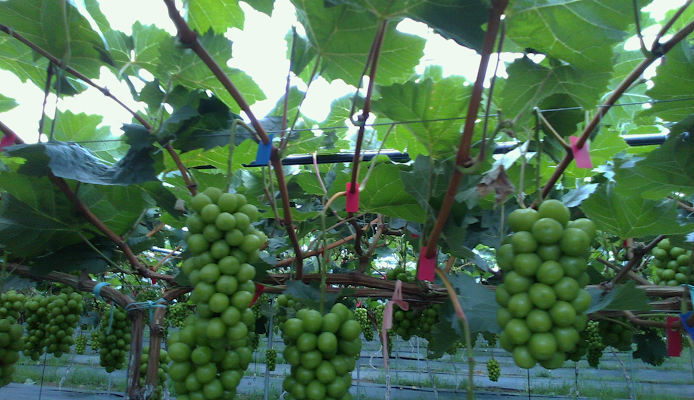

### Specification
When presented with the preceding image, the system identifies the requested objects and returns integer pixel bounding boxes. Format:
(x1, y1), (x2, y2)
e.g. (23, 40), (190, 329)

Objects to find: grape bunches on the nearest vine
(0, 319), (25, 387)
(495, 199), (597, 371)
(167, 314), (252, 399)
(183, 187), (265, 342)
(282, 302), (361, 399)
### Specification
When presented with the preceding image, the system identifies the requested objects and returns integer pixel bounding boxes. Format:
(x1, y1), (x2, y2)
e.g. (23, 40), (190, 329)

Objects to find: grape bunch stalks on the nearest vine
(222, 118), (261, 193)
(319, 191), (345, 316)
(531, 106), (572, 204)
